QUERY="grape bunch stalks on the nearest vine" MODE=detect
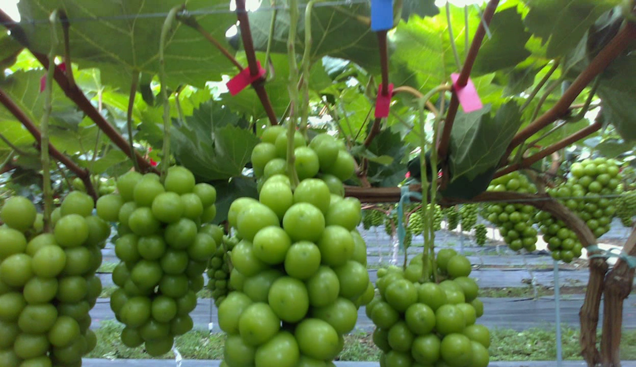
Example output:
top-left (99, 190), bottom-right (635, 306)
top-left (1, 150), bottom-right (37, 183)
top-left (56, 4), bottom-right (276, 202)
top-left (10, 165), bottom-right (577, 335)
top-left (300, 0), bottom-right (313, 135)
top-left (418, 84), bottom-right (449, 280)
top-left (155, 5), bottom-right (180, 183)
top-left (41, 7), bottom-right (66, 233)
top-left (287, 0), bottom-right (299, 191)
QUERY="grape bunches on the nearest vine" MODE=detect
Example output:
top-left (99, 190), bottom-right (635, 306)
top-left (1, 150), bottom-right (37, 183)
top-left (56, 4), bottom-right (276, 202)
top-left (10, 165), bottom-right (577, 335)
top-left (97, 167), bottom-right (224, 358)
top-left (250, 124), bottom-right (357, 198)
top-left (0, 191), bottom-right (112, 366)
top-left (366, 264), bottom-right (492, 366)
top-left (218, 174), bottom-right (377, 366)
